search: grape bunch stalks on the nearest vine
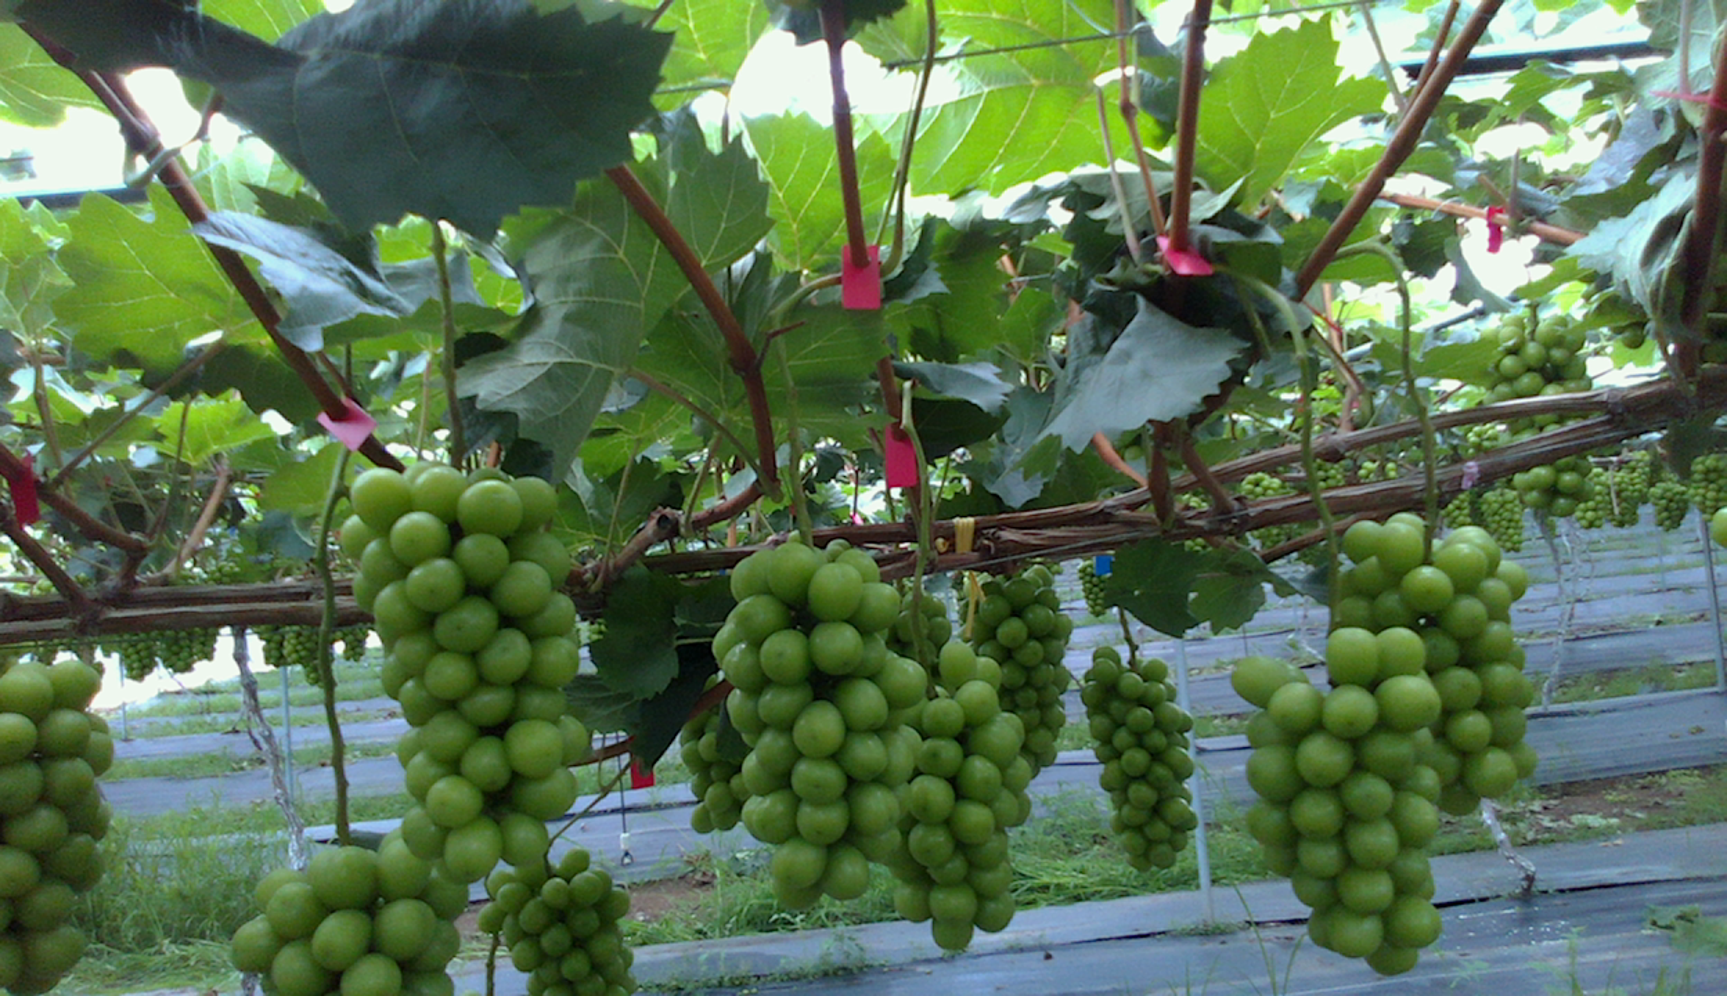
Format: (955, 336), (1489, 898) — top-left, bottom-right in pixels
(311, 445), (350, 844)
(902, 378), (937, 697)
(1209, 264), (1340, 632)
(1330, 242), (1436, 563)
(768, 274), (841, 546)
(430, 223), (462, 469)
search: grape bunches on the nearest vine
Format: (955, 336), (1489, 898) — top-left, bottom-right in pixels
(713, 539), (927, 912)
(1335, 513), (1537, 815)
(227, 824), (468, 993)
(1232, 627), (1442, 975)
(890, 640), (1034, 953)
(340, 463), (590, 884)
(1, 658), (111, 978)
